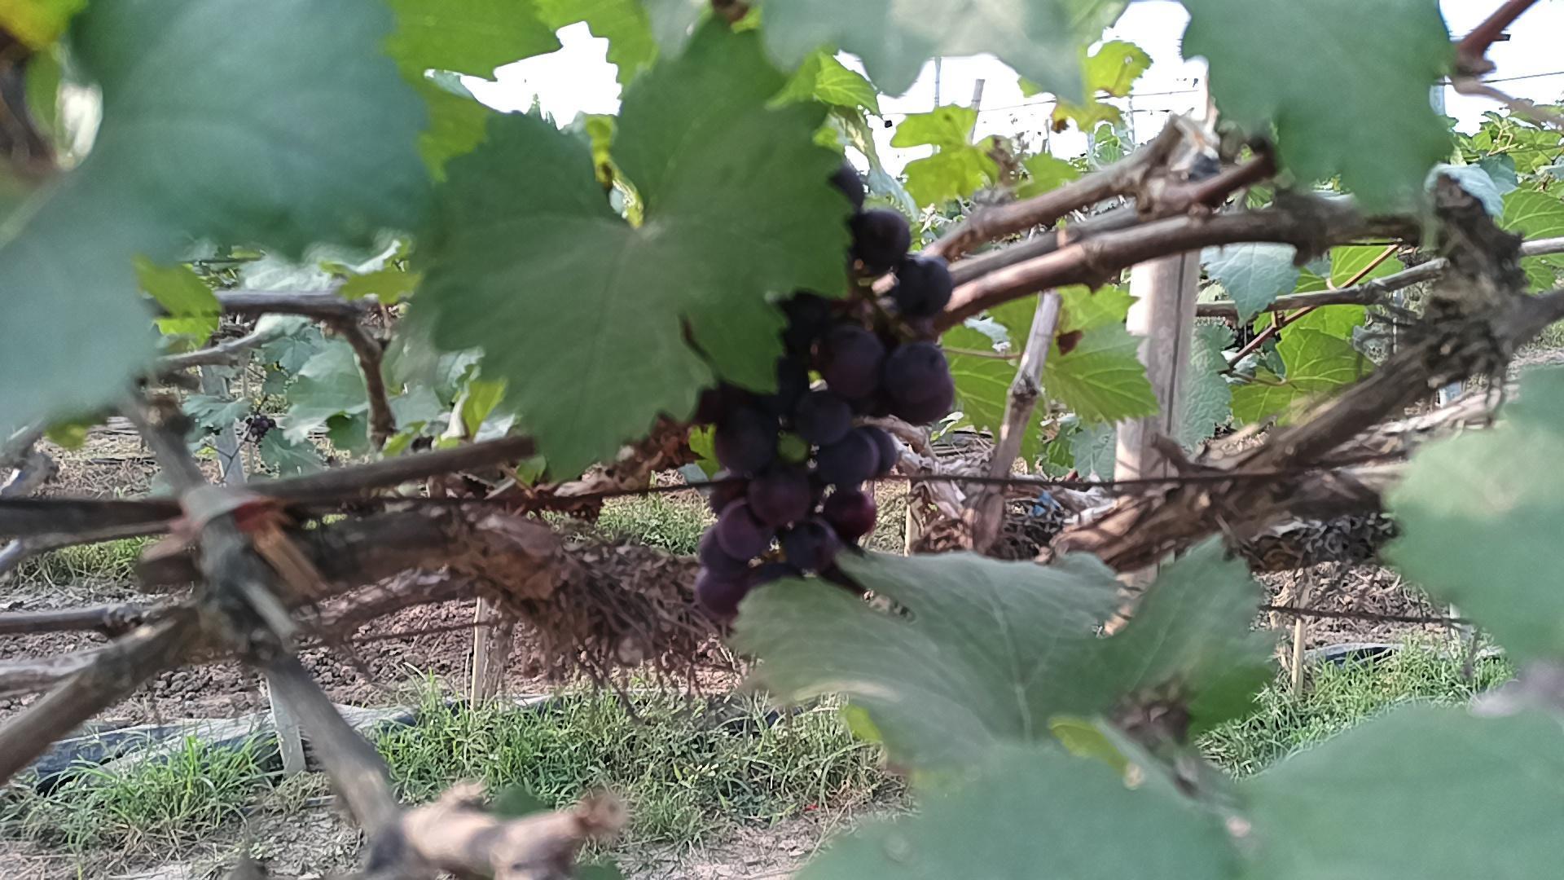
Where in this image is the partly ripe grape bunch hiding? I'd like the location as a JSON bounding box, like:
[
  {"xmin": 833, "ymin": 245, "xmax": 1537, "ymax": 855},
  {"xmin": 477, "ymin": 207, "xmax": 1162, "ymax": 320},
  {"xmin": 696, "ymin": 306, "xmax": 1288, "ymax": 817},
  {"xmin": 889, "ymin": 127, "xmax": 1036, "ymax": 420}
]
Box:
[{"xmin": 696, "ymin": 166, "xmax": 954, "ymax": 620}]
